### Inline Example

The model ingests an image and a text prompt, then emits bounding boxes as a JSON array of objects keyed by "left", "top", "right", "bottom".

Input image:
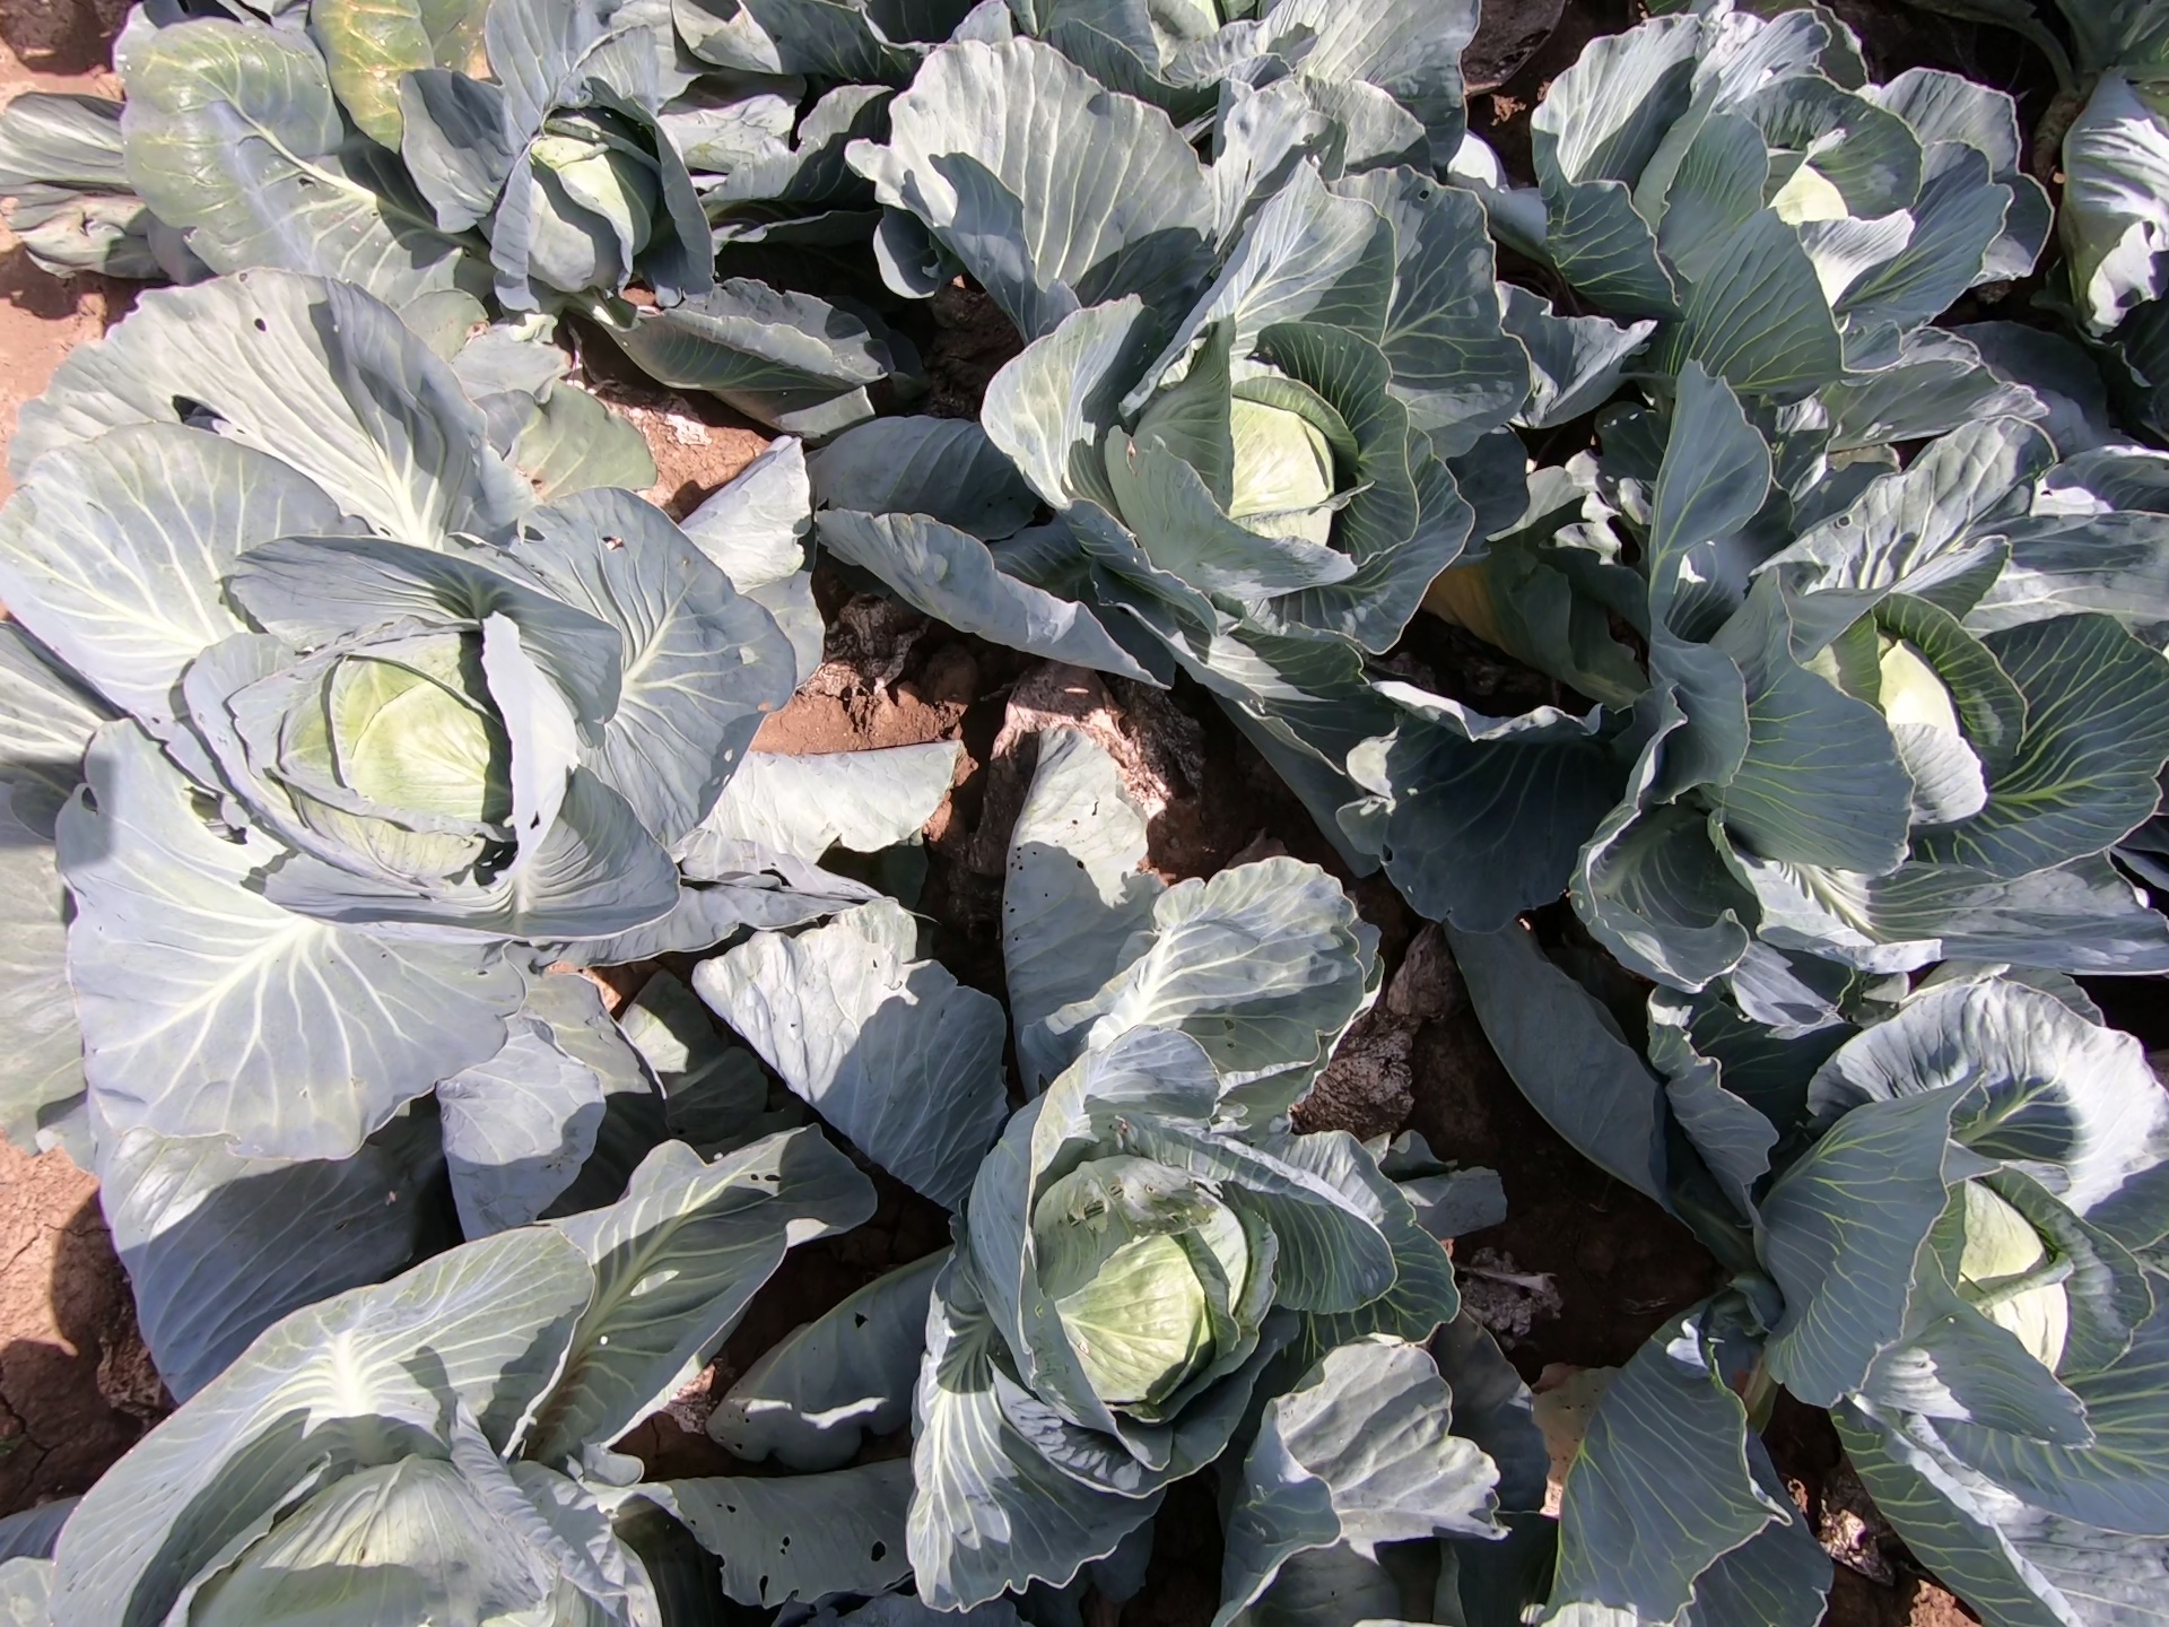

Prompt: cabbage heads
[
  {"left": 1044, "top": 2, "right": 1222, "bottom": 133},
  {"left": 1707, "top": 149, "right": 1857, "bottom": 319},
  {"left": 469, "top": 104, "right": 660, "bottom": 296},
  {"left": 1739, "top": 599, "right": 1962, "bottom": 825},
  {"left": 1796, "top": 1159, "right": 2074, "bottom": 1420},
  {"left": 272, "top": 624, "right": 570, "bottom": 884},
  {"left": 1126, "top": 358, "right": 1336, "bottom": 580},
  {"left": 1022, "top": 1172, "right": 1261, "bottom": 1412},
  {"left": 185, "top": 1455, "right": 662, "bottom": 1621}
]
